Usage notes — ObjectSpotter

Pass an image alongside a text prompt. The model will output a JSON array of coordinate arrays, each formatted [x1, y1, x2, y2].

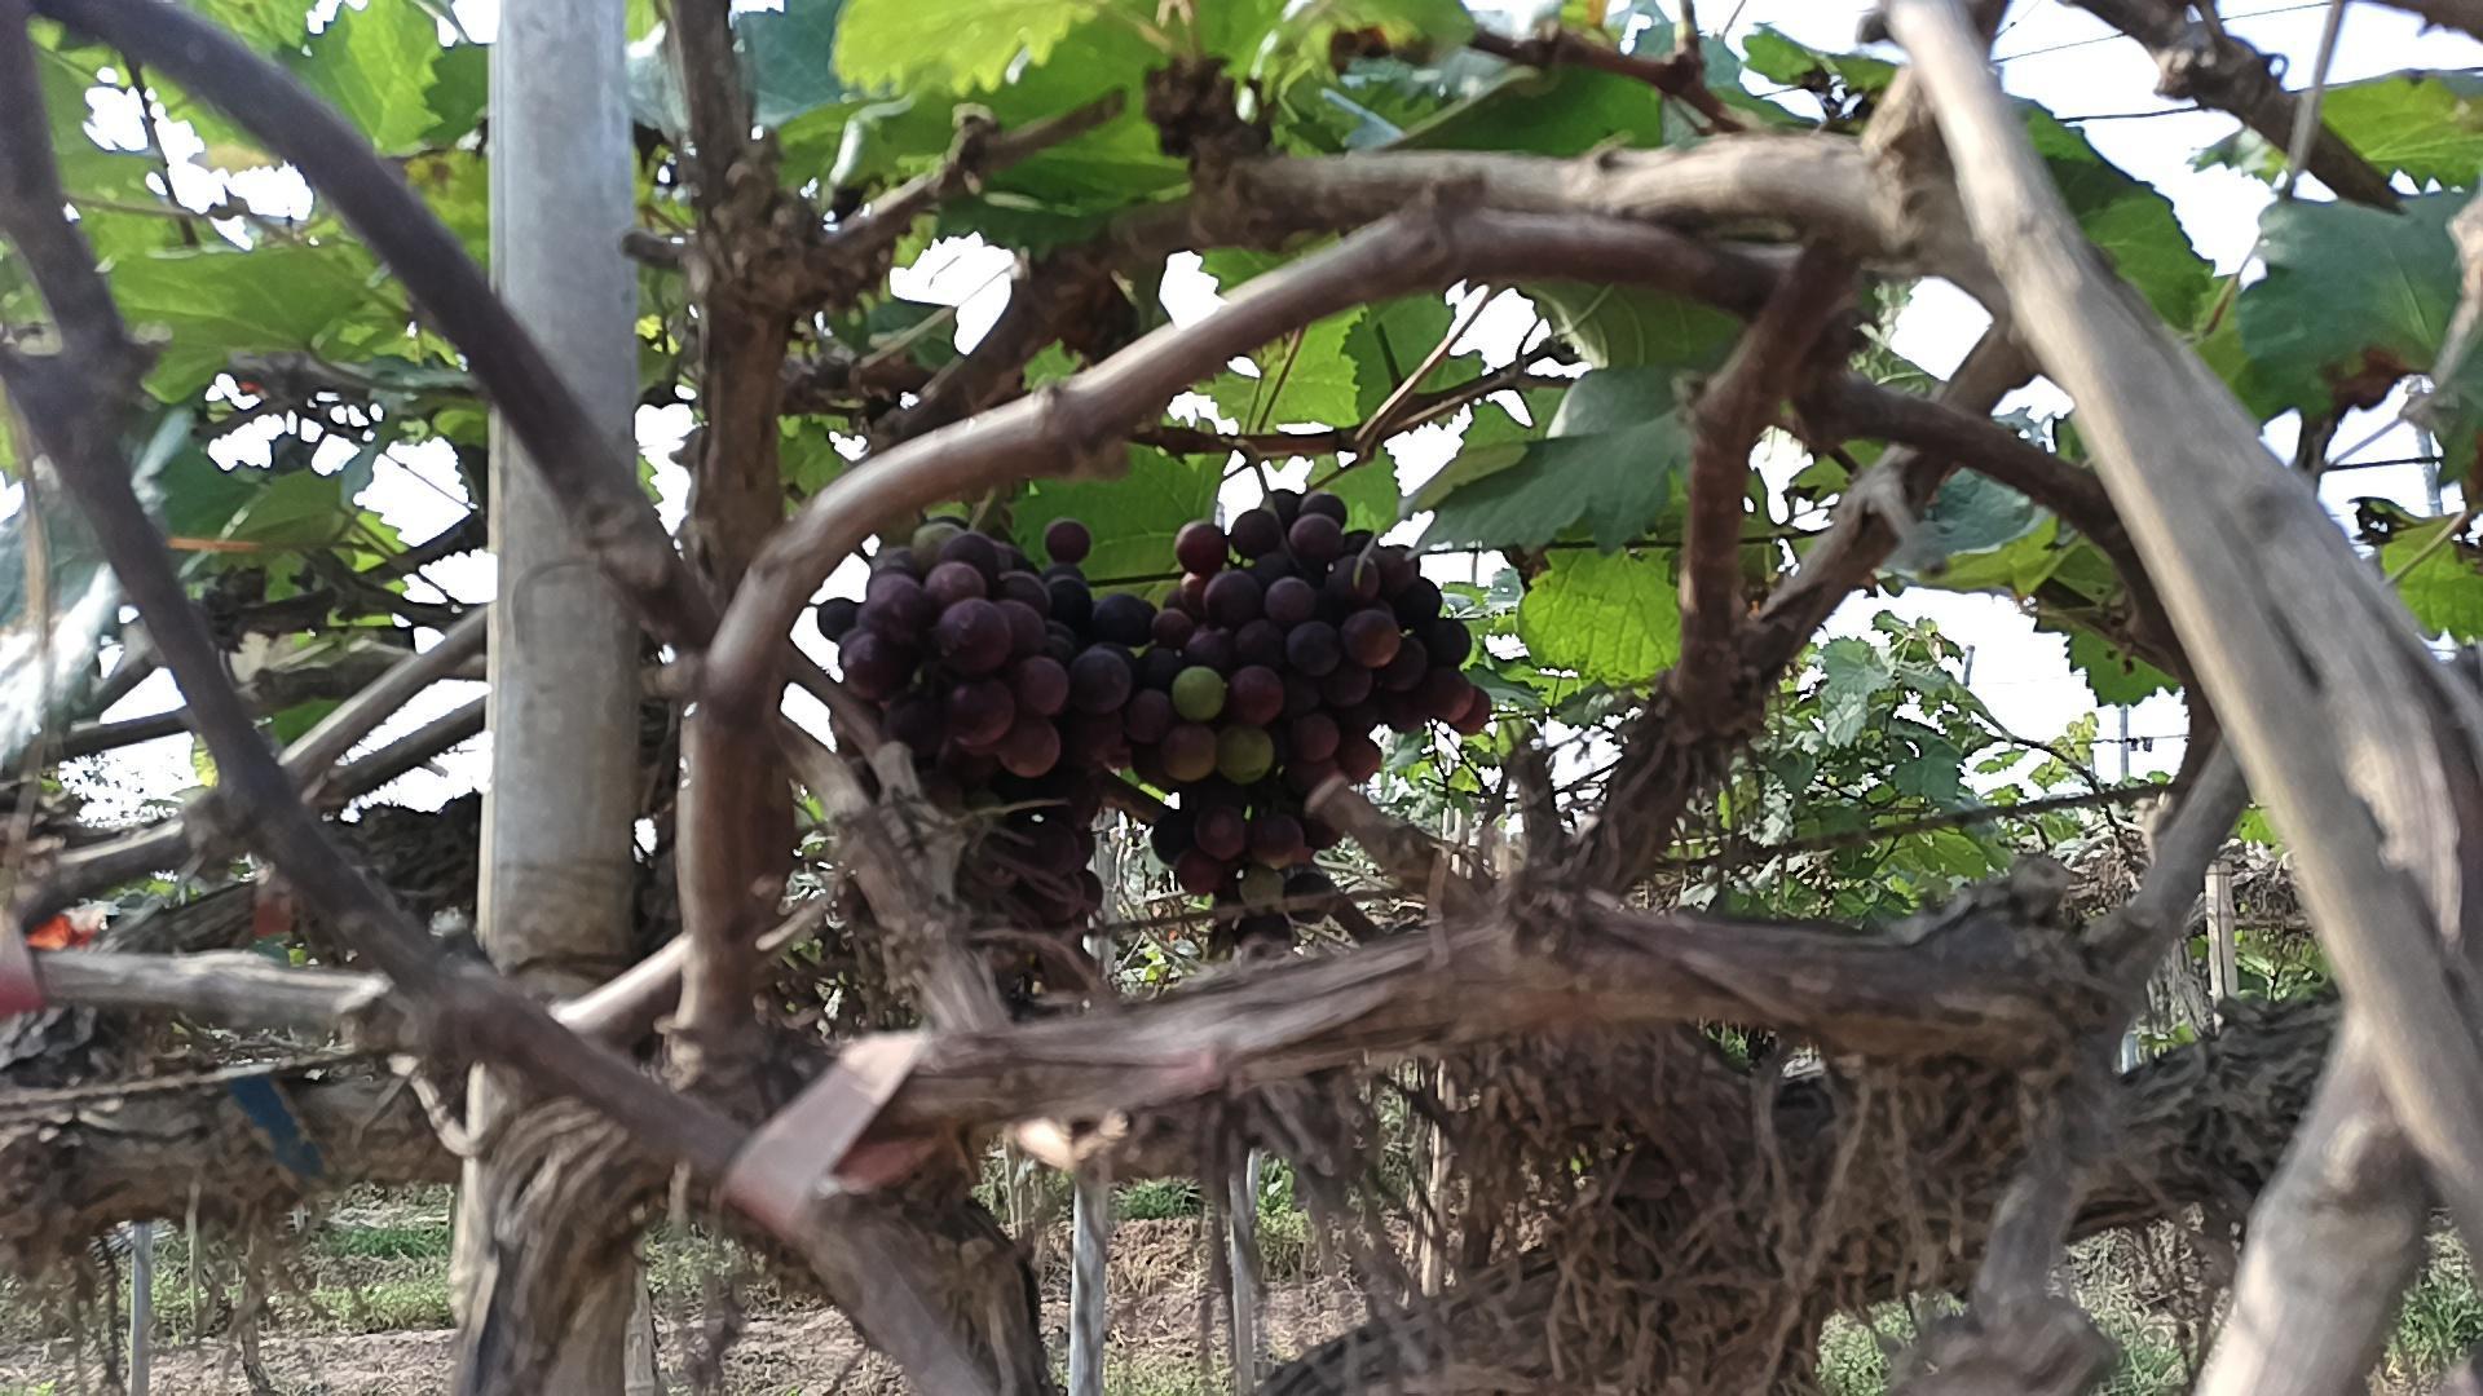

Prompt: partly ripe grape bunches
[[1124, 489, 1491, 954], [816, 517, 1157, 993]]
